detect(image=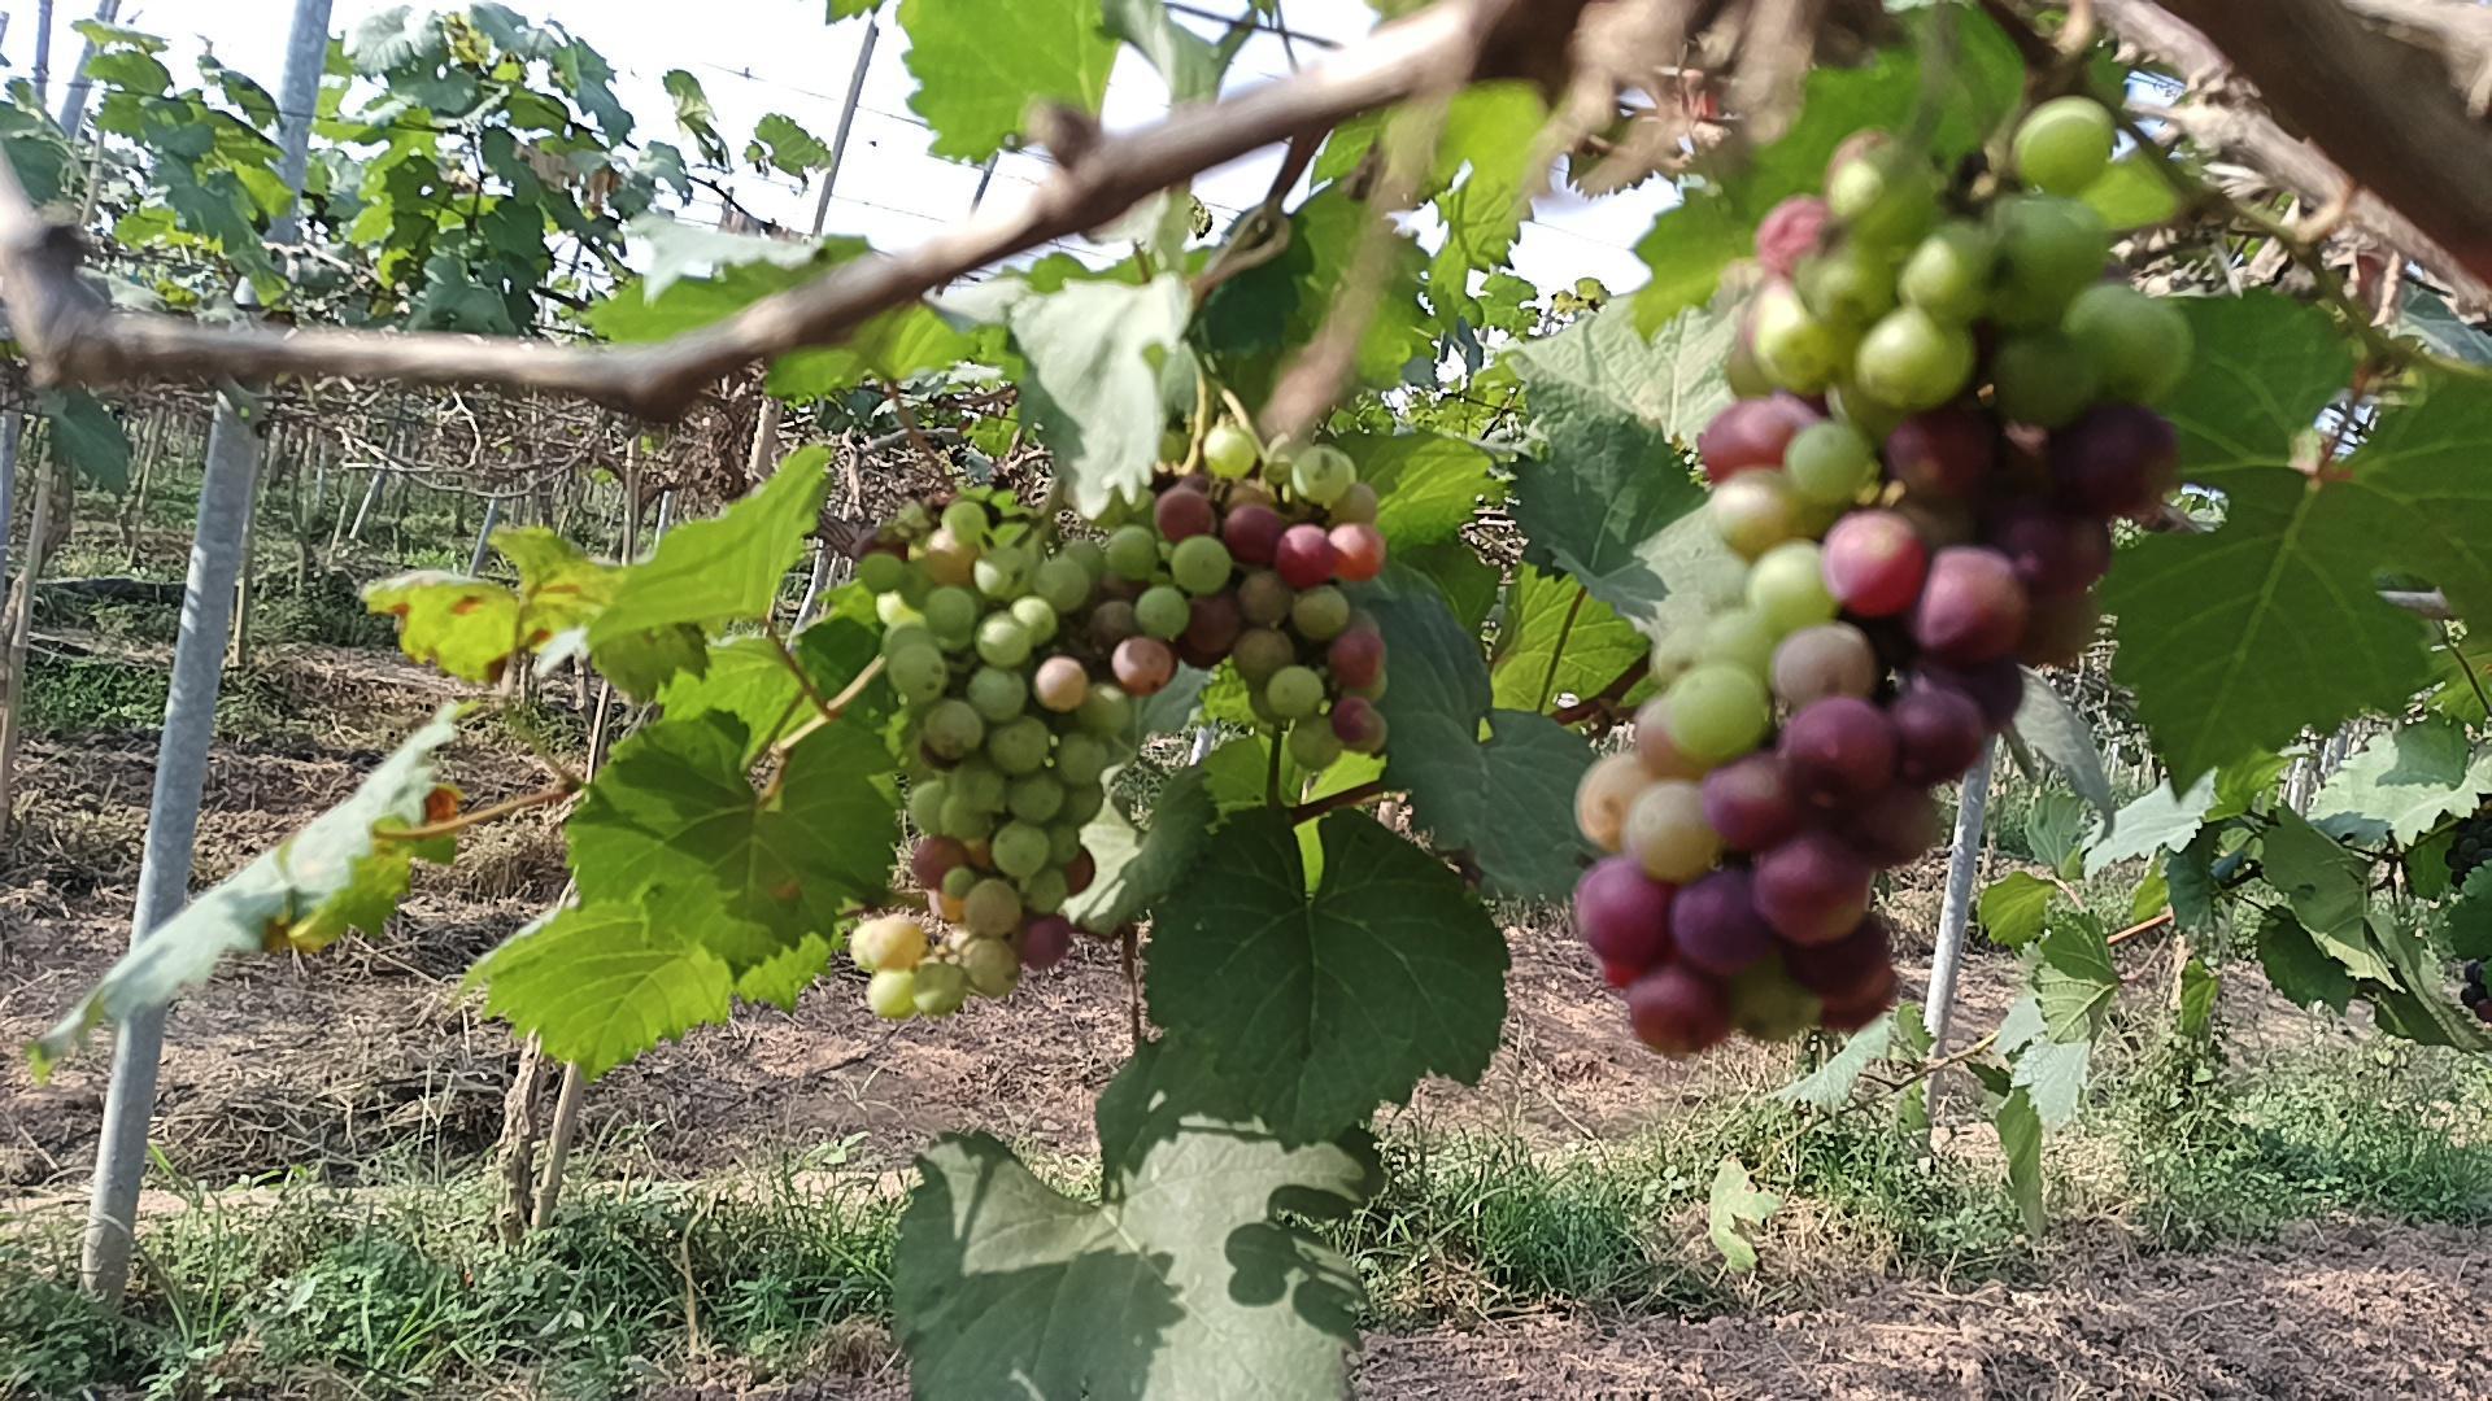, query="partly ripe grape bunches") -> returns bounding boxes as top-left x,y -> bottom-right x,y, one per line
848,422 -> 1385,1020
1574,97 -> 2187,1053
